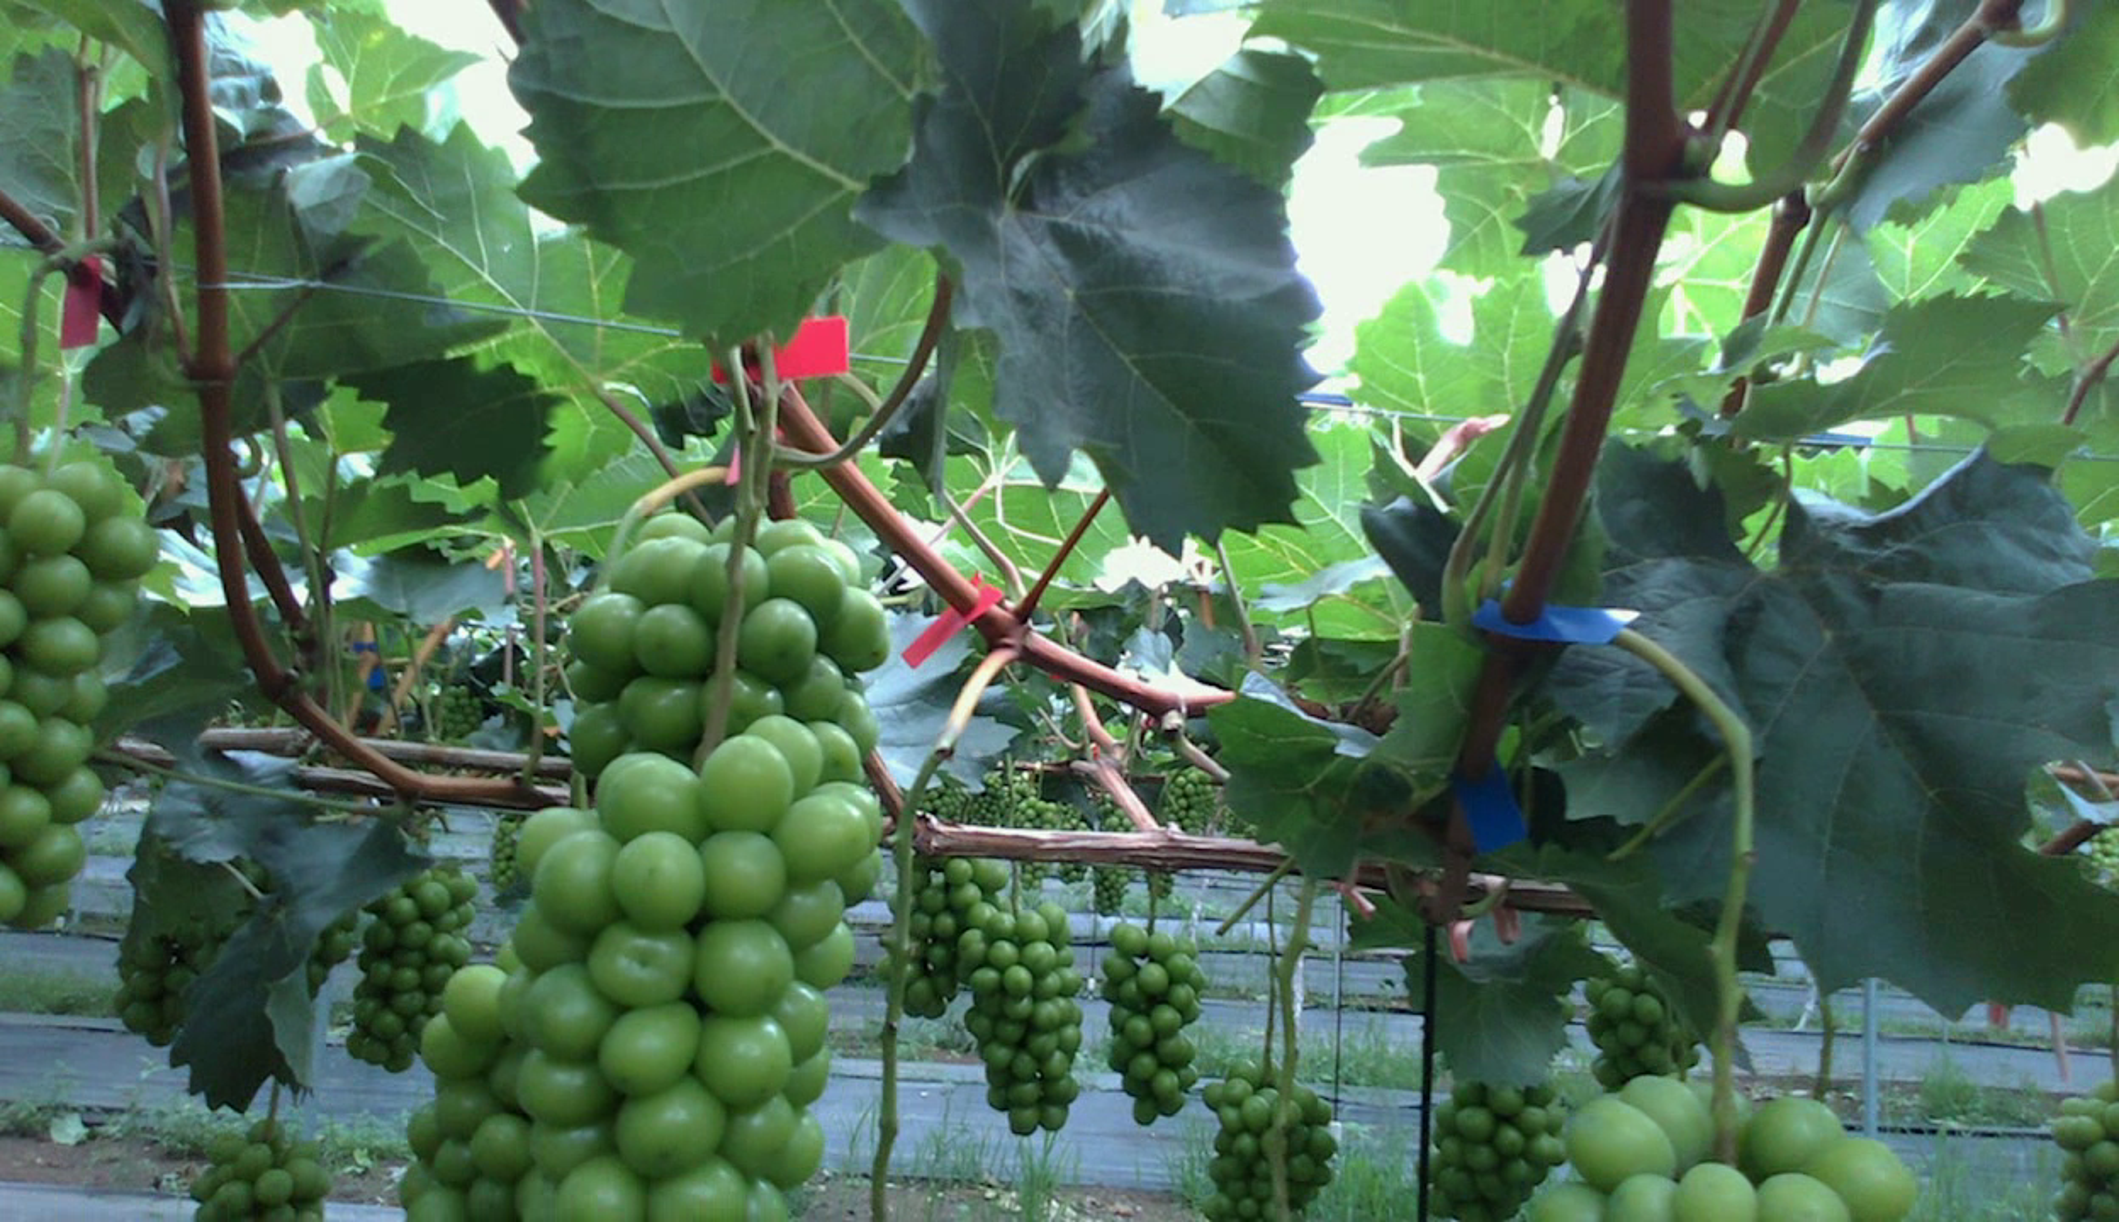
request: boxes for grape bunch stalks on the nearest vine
[1615,631,1752,1171]
[15,236,127,468]
[693,345,756,779]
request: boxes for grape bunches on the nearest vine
[0,458,160,930]
[396,940,538,1220]
[1526,1074,1920,1220]
[564,511,890,781]
[496,713,883,1220]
